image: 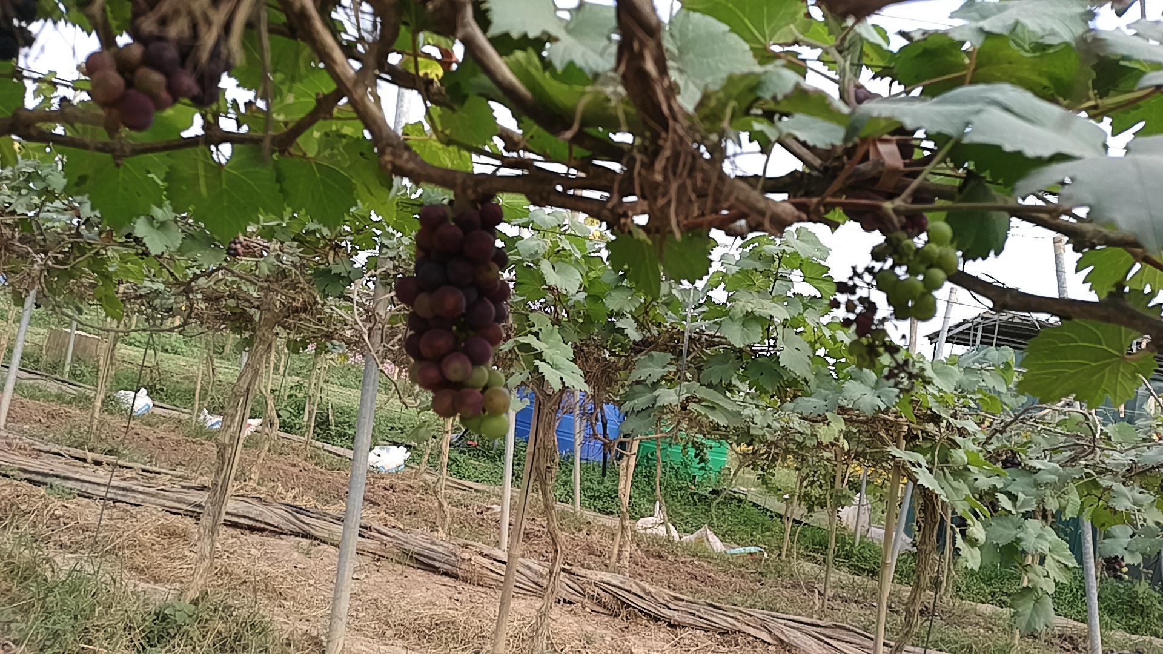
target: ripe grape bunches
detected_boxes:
[84,41,200,131]
[838,127,934,237]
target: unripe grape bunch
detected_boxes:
[865,219,966,320]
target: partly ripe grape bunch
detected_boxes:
[395,195,509,438]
